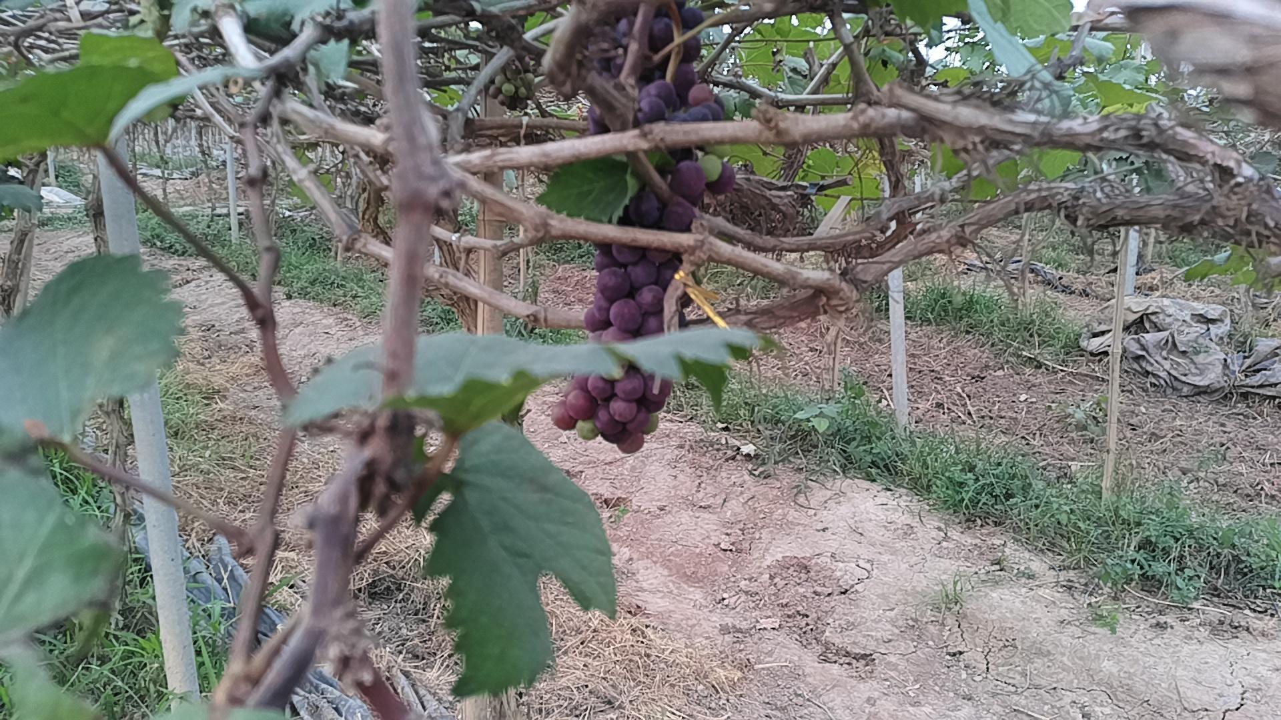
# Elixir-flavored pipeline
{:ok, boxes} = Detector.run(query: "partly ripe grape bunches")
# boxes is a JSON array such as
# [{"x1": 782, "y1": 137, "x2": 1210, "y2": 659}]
[
  {"x1": 488, "y1": 57, "x2": 536, "y2": 111},
  {"x1": 552, "y1": 0, "x2": 735, "y2": 453}
]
